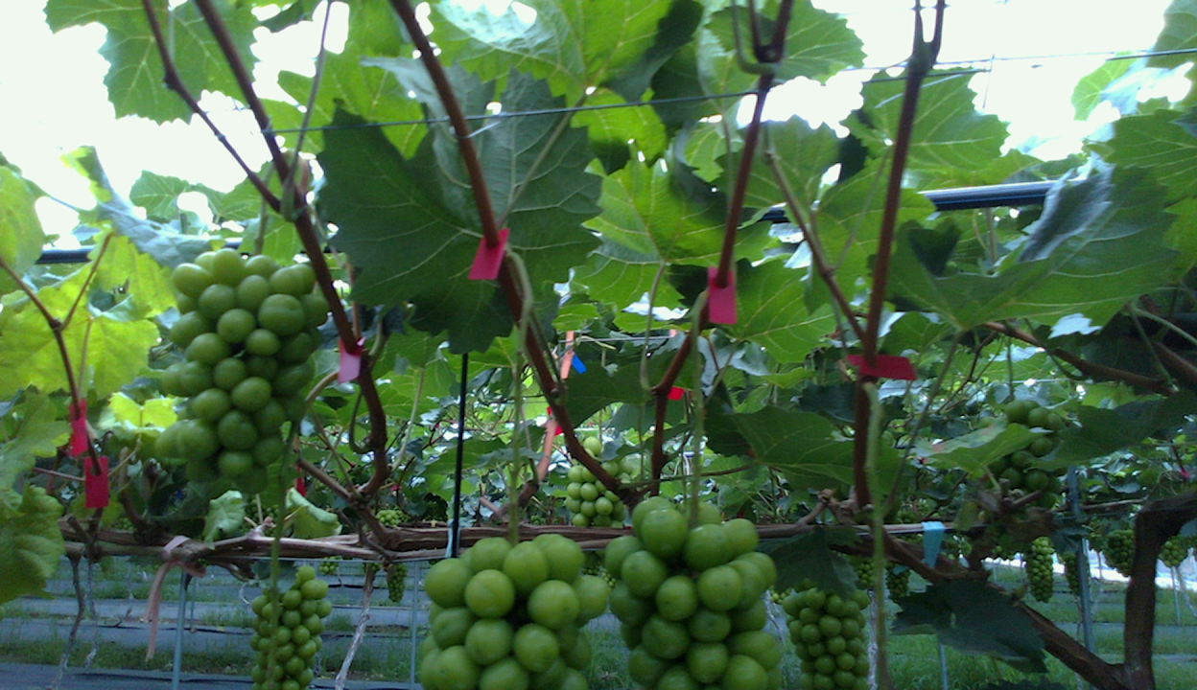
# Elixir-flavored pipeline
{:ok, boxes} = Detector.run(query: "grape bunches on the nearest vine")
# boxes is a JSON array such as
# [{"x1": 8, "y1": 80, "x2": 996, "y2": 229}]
[
  {"x1": 417, "y1": 534, "x2": 609, "y2": 688},
  {"x1": 604, "y1": 495, "x2": 783, "y2": 689},
  {"x1": 154, "y1": 247, "x2": 329, "y2": 494}
]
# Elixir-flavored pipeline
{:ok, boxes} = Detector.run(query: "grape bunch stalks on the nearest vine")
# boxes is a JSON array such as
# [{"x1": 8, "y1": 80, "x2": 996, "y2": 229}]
[
  {"x1": 689, "y1": 288, "x2": 709, "y2": 528},
  {"x1": 252, "y1": 167, "x2": 275, "y2": 256},
  {"x1": 508, "y1": 251, "x2": 533, "y2": 548}
]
